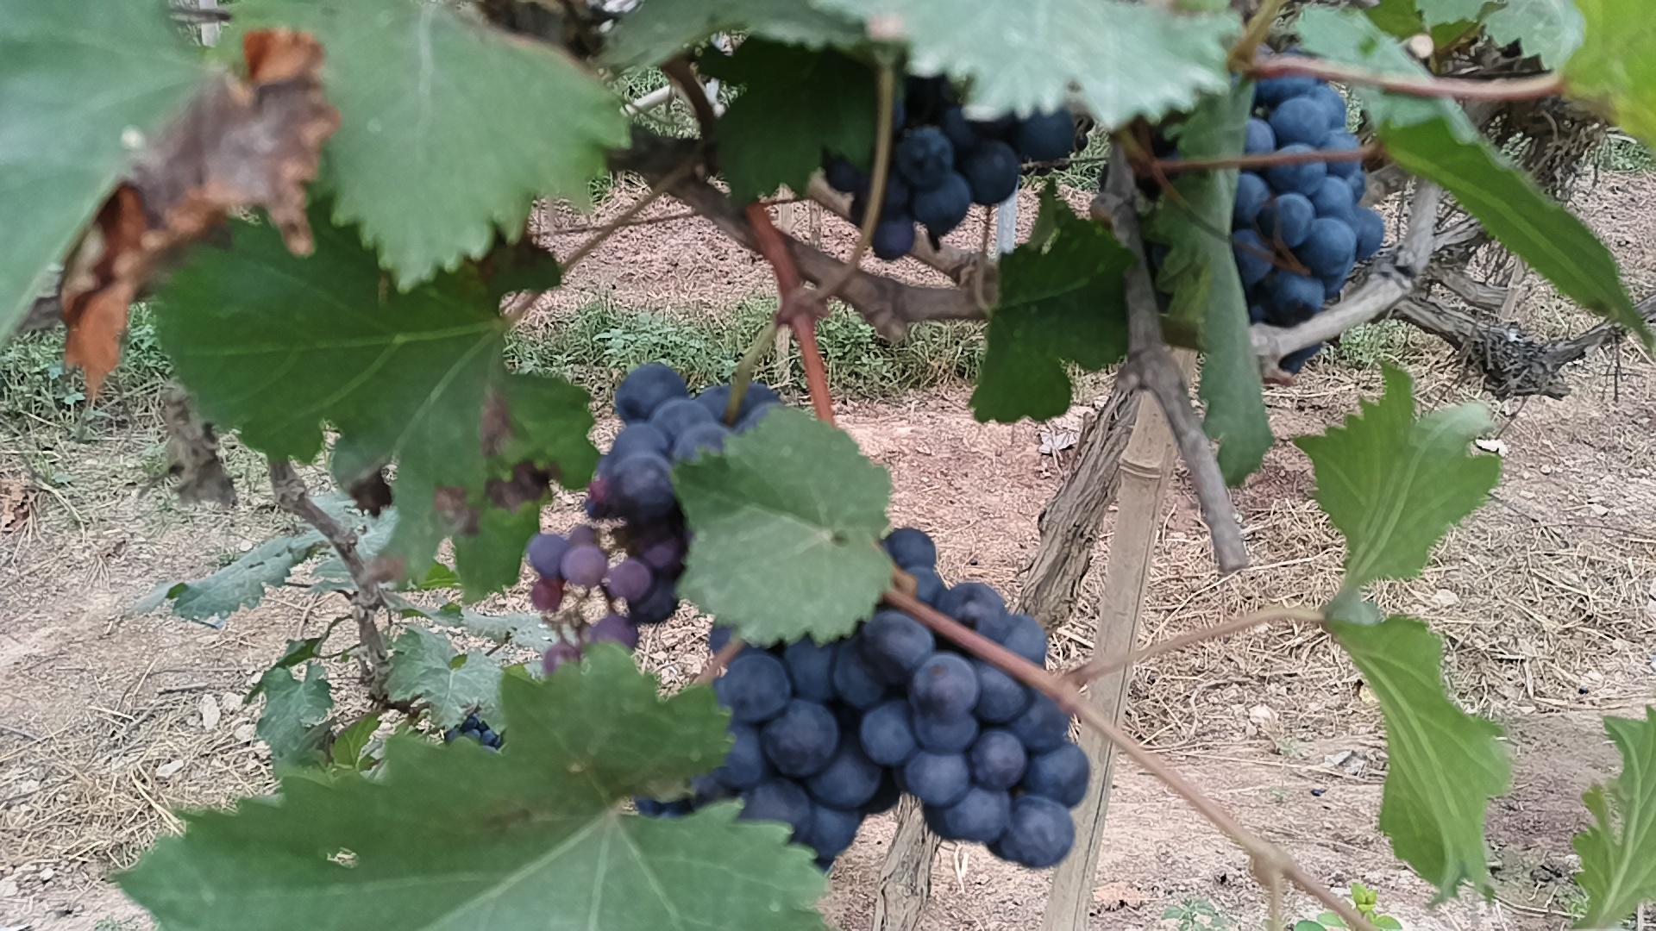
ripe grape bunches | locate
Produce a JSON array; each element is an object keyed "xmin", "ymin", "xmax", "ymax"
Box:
[
  {"xmin": 878, "ymin": 528, "xmax": 1045, "ymax": 667},
  {"xmin": 1126, "ymin": 76, "xmax": 1383, "ymax": 384},
  {"xmin": 443, "ymin": 709, "xmax": 502, "ymax": 749},
  {"xmin": 825, "ymin": 75, "xmax": 1075, "ymax": 259},
  {"xmin": 525, "ymin": 364, "xmax": 1088, "ymax": 868}
]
